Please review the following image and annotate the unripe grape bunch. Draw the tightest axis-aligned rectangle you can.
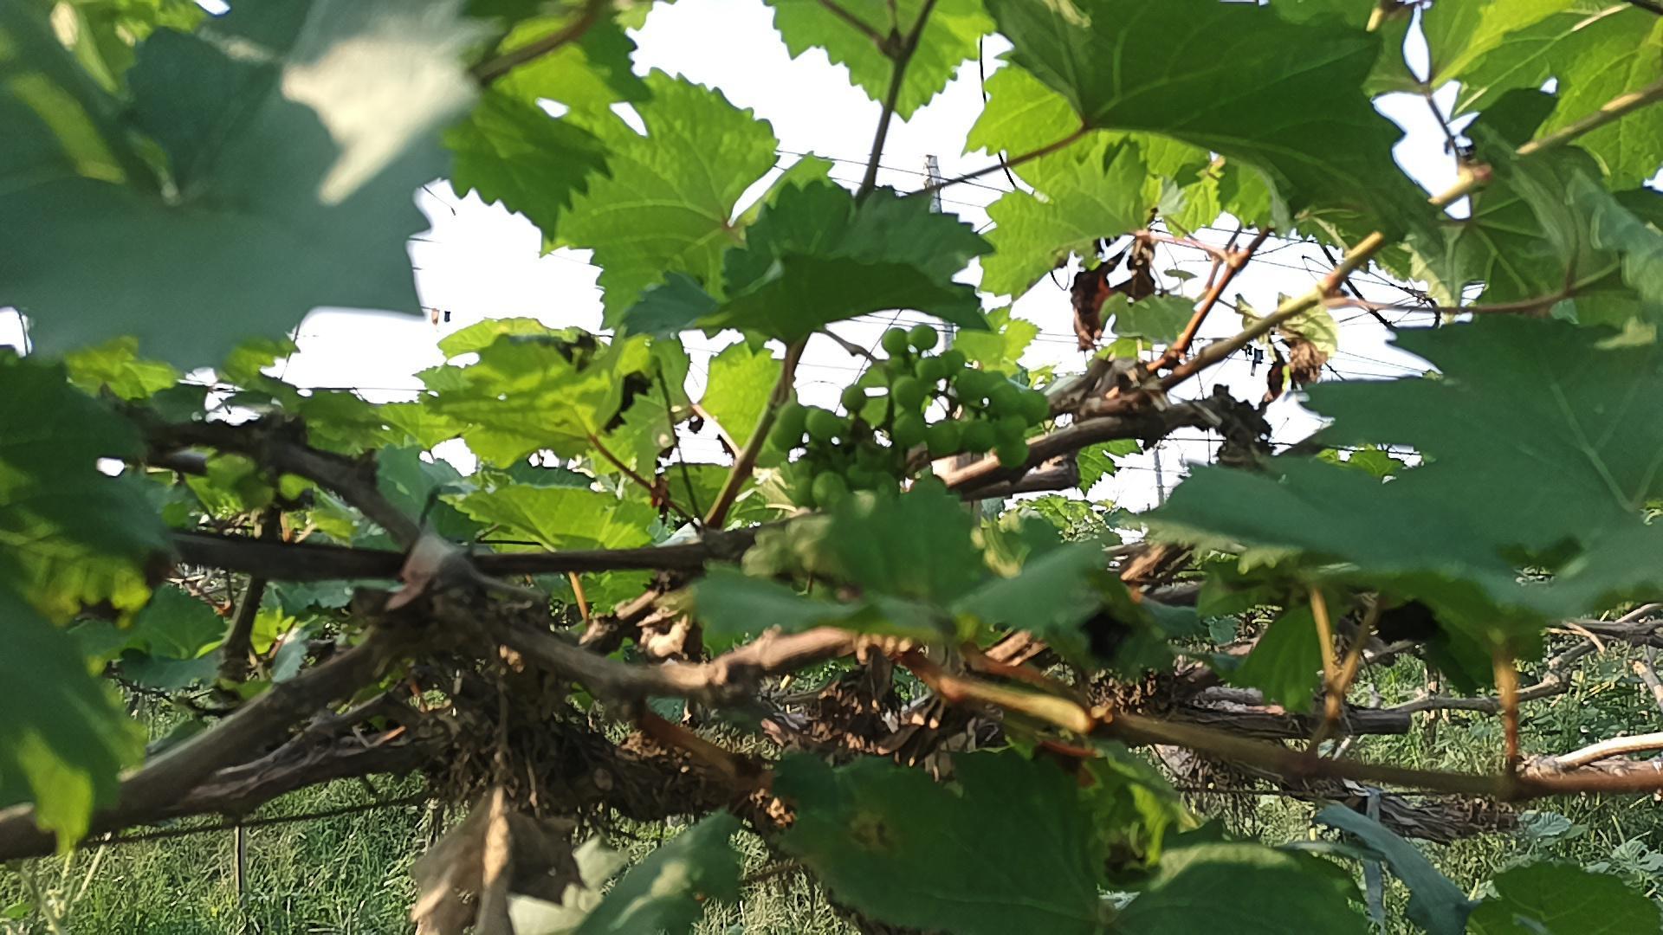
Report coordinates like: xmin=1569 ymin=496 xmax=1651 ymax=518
xmin=780 ymin=325 xmax=1049 ymax=488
